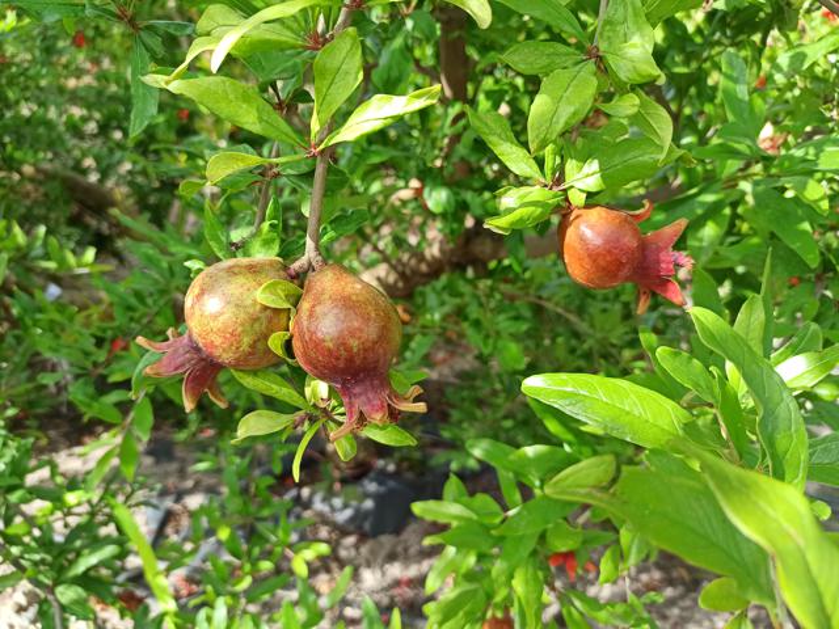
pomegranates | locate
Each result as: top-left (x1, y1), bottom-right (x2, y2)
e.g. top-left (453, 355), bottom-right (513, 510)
top-left (291, 263), bottom-right (429, 442)
top-left (557, 197), bottom-right (693, 313)
top-left (135, 256), bottom-right (302, 413)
